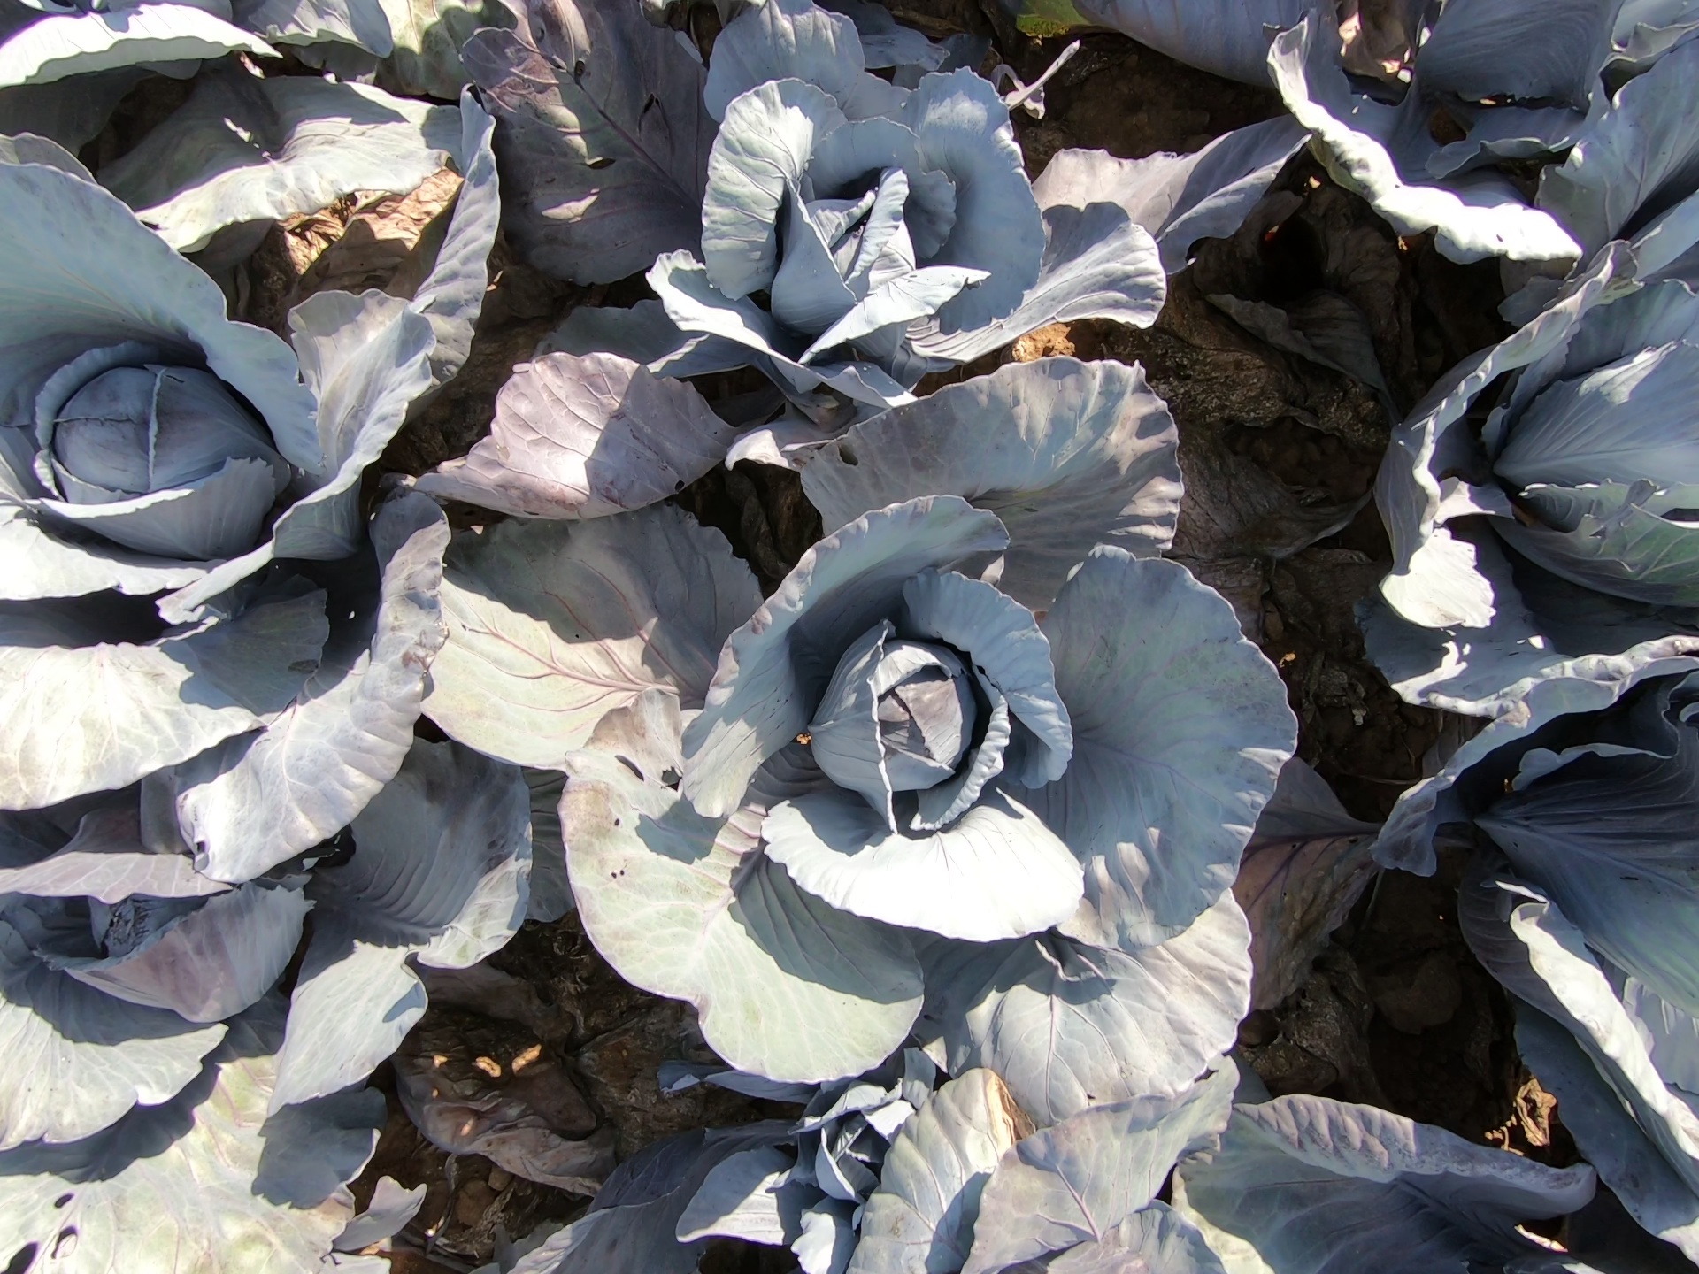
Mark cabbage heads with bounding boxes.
[826,641,970,787]
[1511,348,1696,522]
[825,1095,913,1199]
[55,365,267,539]
[81,810,273,994]
[796,201,913,312]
